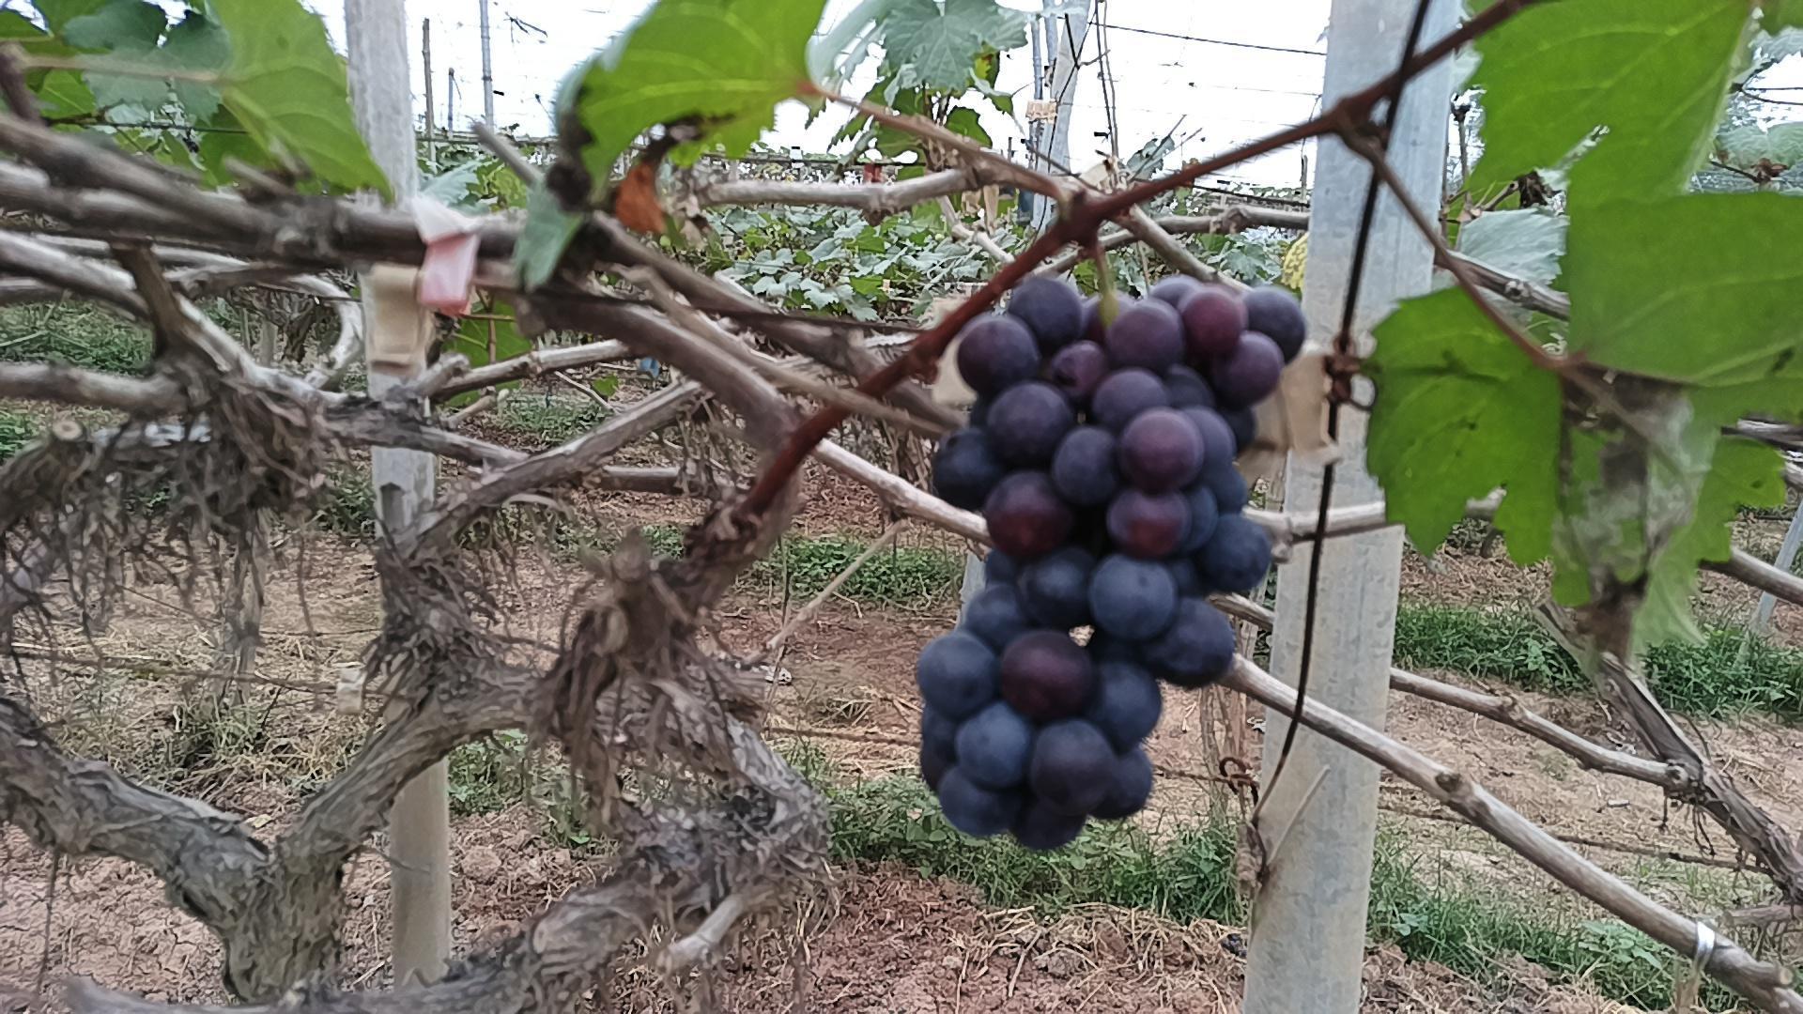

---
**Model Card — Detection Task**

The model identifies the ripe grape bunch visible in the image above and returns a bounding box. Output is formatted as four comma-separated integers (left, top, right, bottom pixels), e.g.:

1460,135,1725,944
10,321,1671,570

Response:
918,278,1304,849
